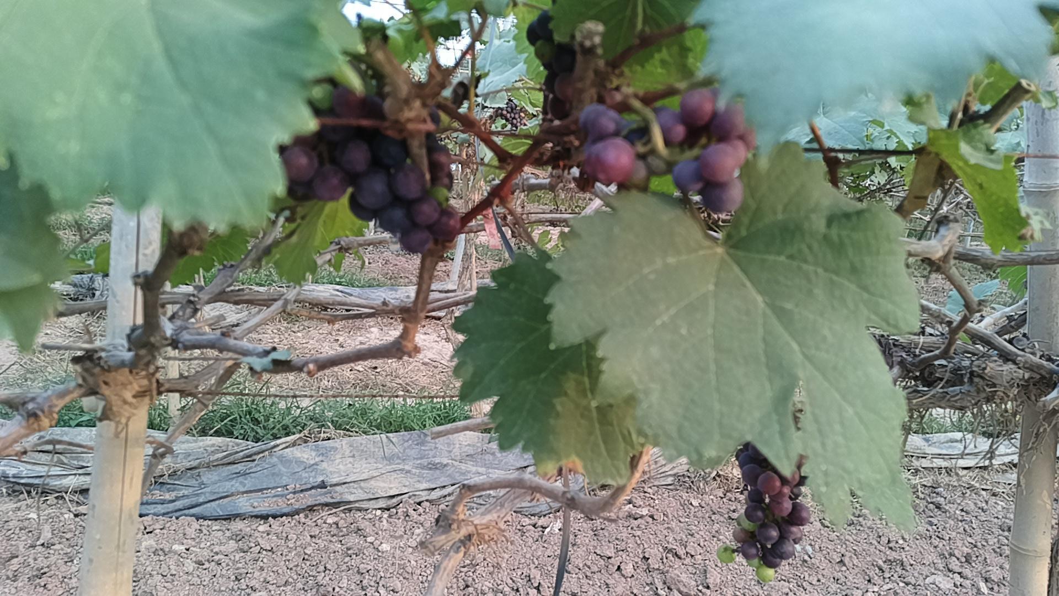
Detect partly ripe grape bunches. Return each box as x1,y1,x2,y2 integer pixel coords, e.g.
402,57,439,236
733,443,810,568
493,98,536,131
281,81,460,253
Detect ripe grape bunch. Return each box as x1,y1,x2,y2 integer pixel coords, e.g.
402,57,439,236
580,88,755,216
